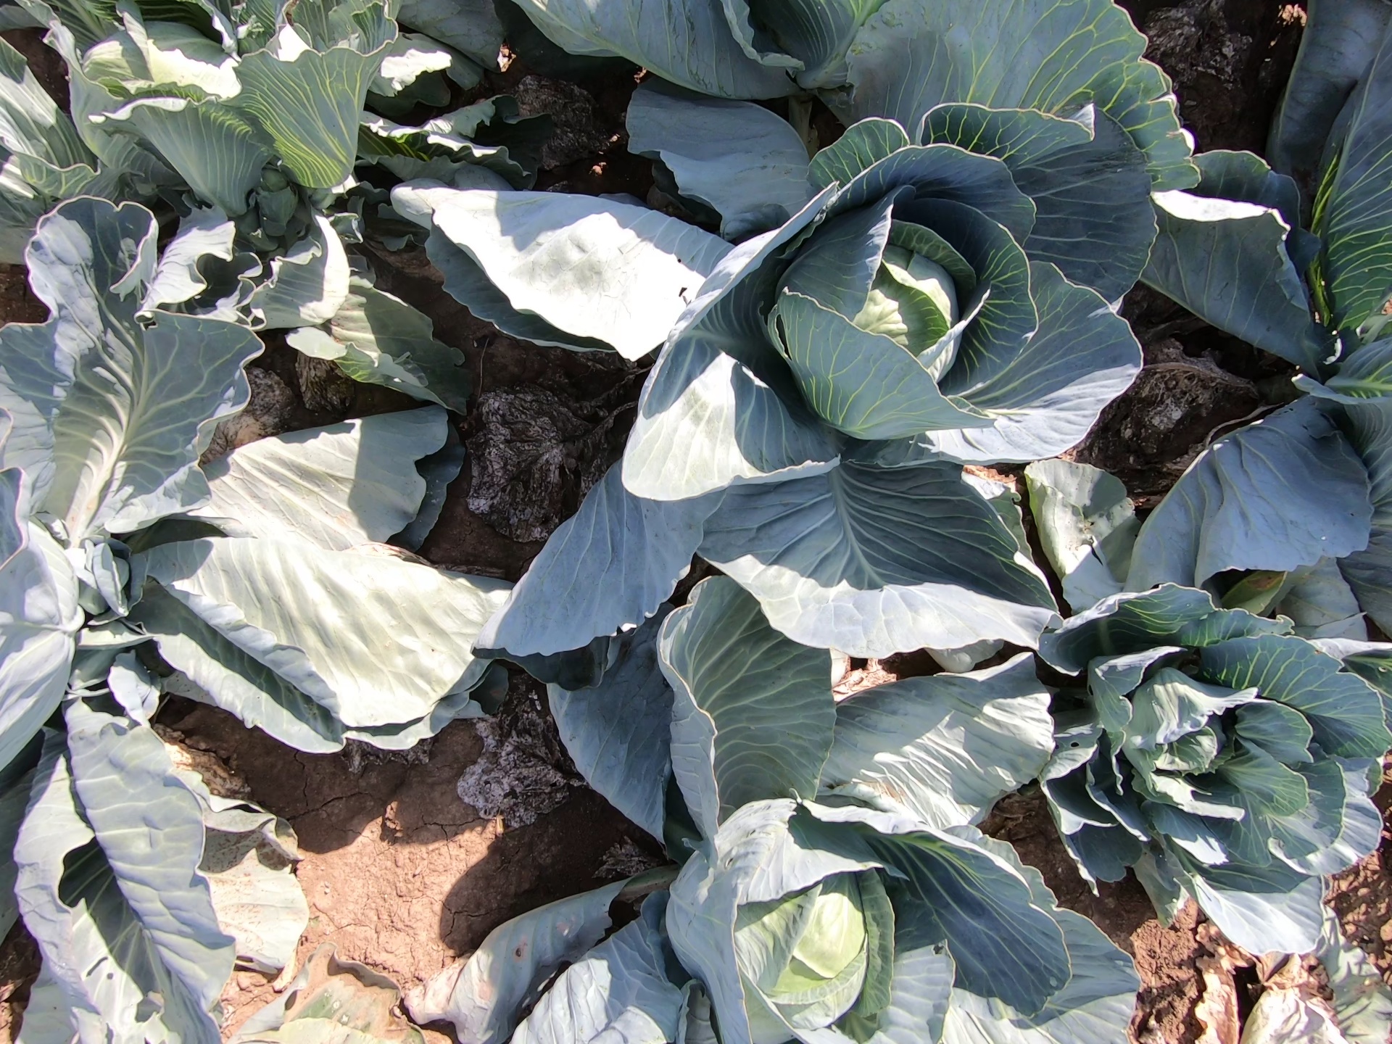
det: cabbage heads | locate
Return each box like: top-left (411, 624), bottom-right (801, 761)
top-left (713, 805), bottom-right (882, 1027)
top-left (102, 23), bottom-right (246, 165)
top-left (1141, 692), bottom-right (1225, 770)
top-left (801, 236), bottom-right (961, 407)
